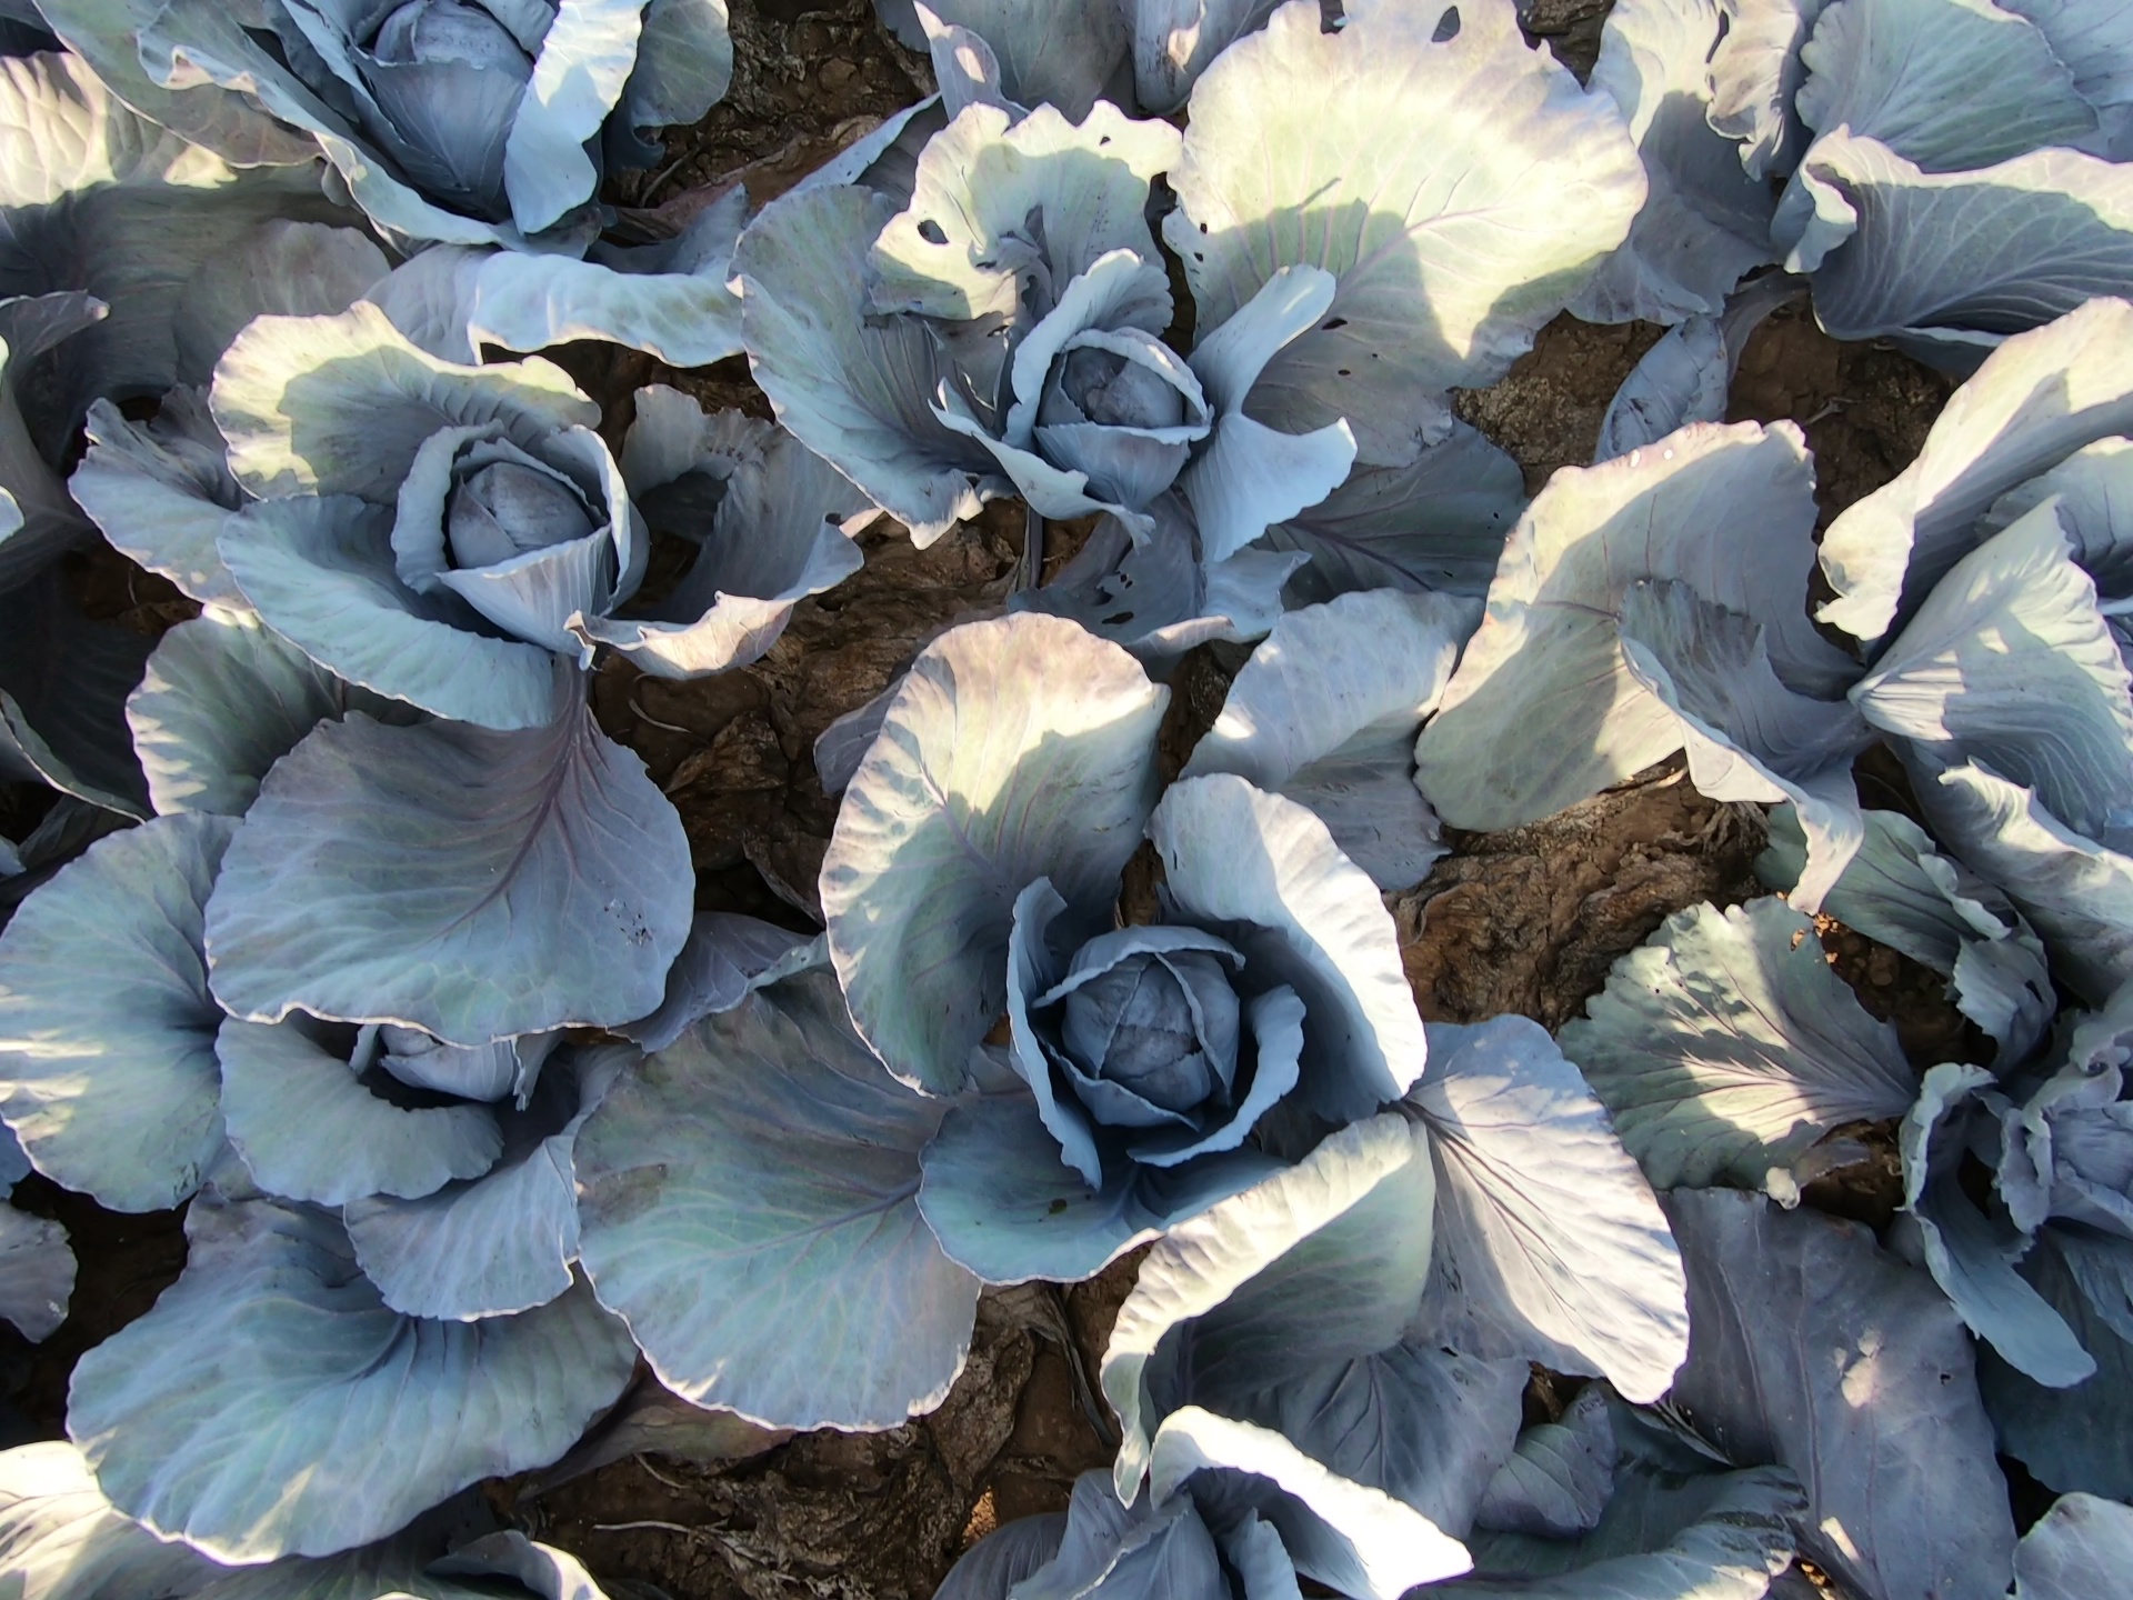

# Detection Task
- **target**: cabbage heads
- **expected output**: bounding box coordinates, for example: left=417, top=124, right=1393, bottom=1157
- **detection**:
left=1061, top=927, right=1239, bottom=1113
left=368, top=3, right=533, bottom=172
left=1985, top=594, right=2130, bottom=767
left=449, top=458, right=598, bottom=616
left=1034, top=332, right=1185, bottom=490
left=368, top=939, right=550, bottom=1101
